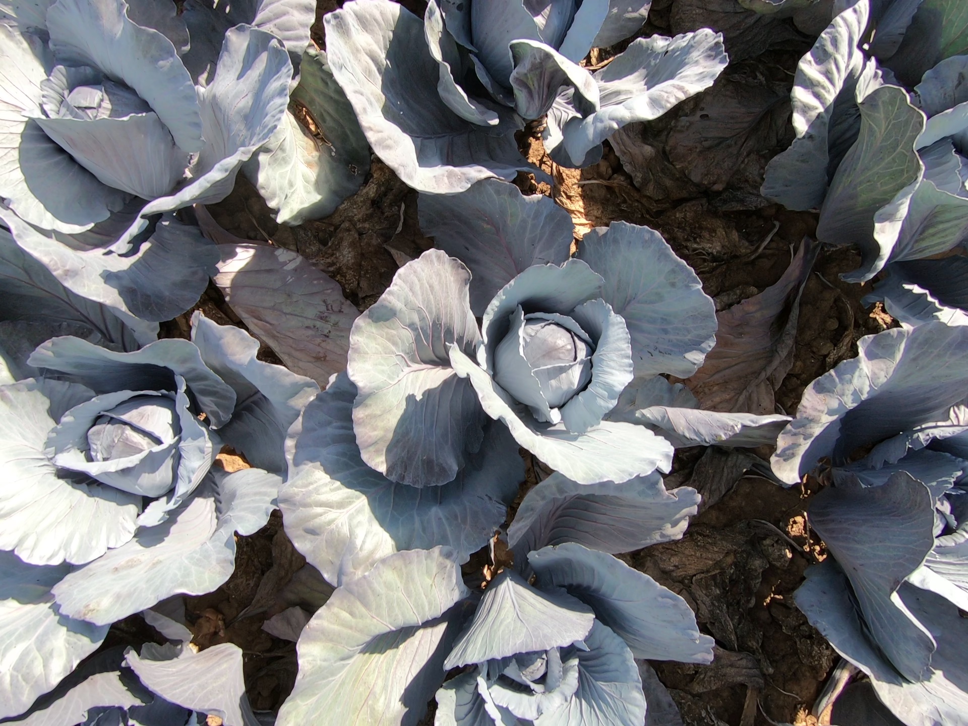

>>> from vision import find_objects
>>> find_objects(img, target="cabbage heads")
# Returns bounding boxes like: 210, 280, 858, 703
892, 151, 964, 251
506, 319, 594, 404
472, 2, 574, 84
486, 602, 554, 683
61, 81, 161, 165
863, 474, 950, 550
88, 398, 196, 486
